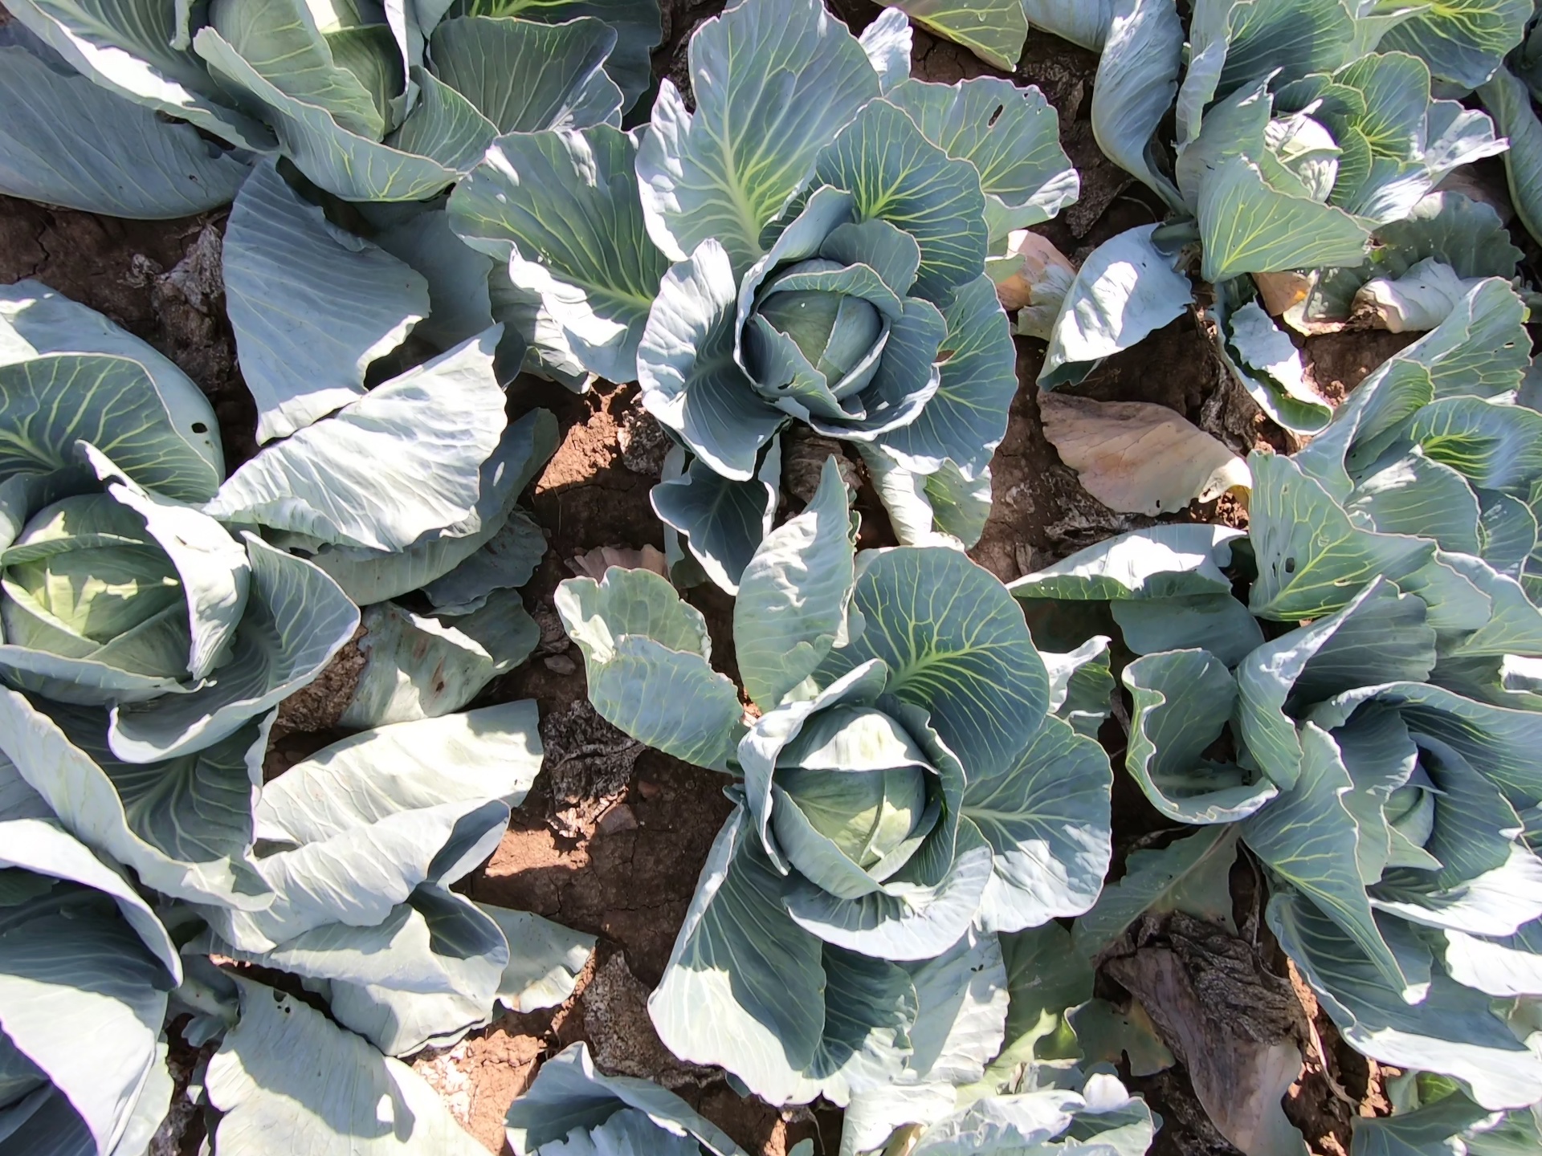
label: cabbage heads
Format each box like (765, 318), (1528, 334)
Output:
(1324, 742), (1437, 861)
(1233, 113), (1338, 218)
(752, 261), (889, 401)
(209, 0), (421, 110)
(2, 485), (236, 698)
(767, 705), (927, 889)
